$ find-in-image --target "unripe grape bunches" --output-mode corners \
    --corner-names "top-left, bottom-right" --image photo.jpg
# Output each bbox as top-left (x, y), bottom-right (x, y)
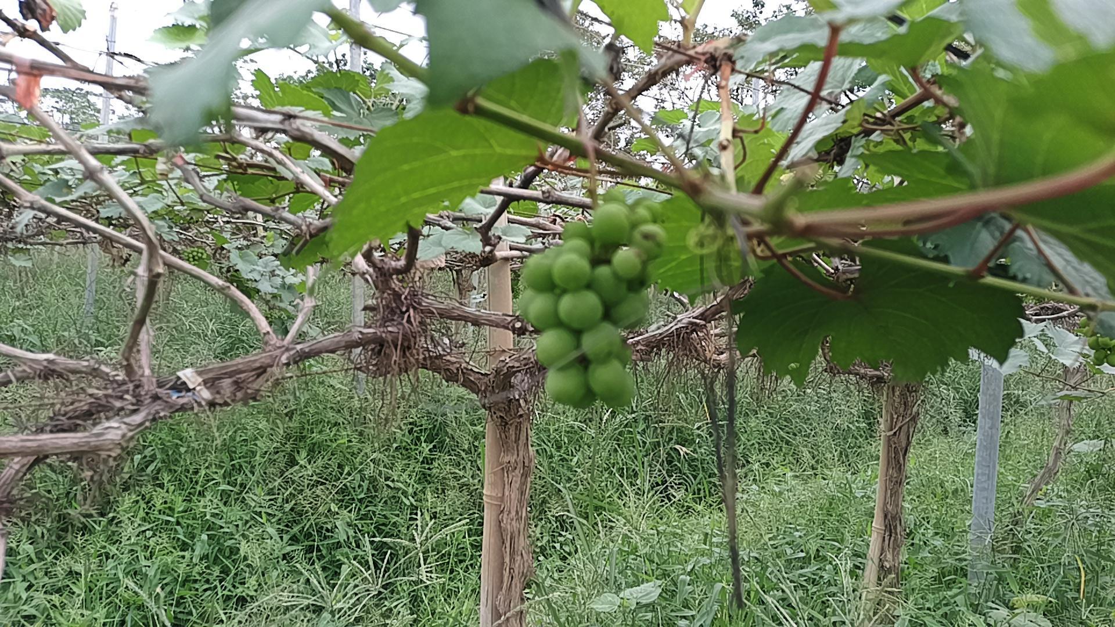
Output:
top-left (520, 191), bottom-right (666, 408)
top-left (178, 246), bottom-right (212, 265)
